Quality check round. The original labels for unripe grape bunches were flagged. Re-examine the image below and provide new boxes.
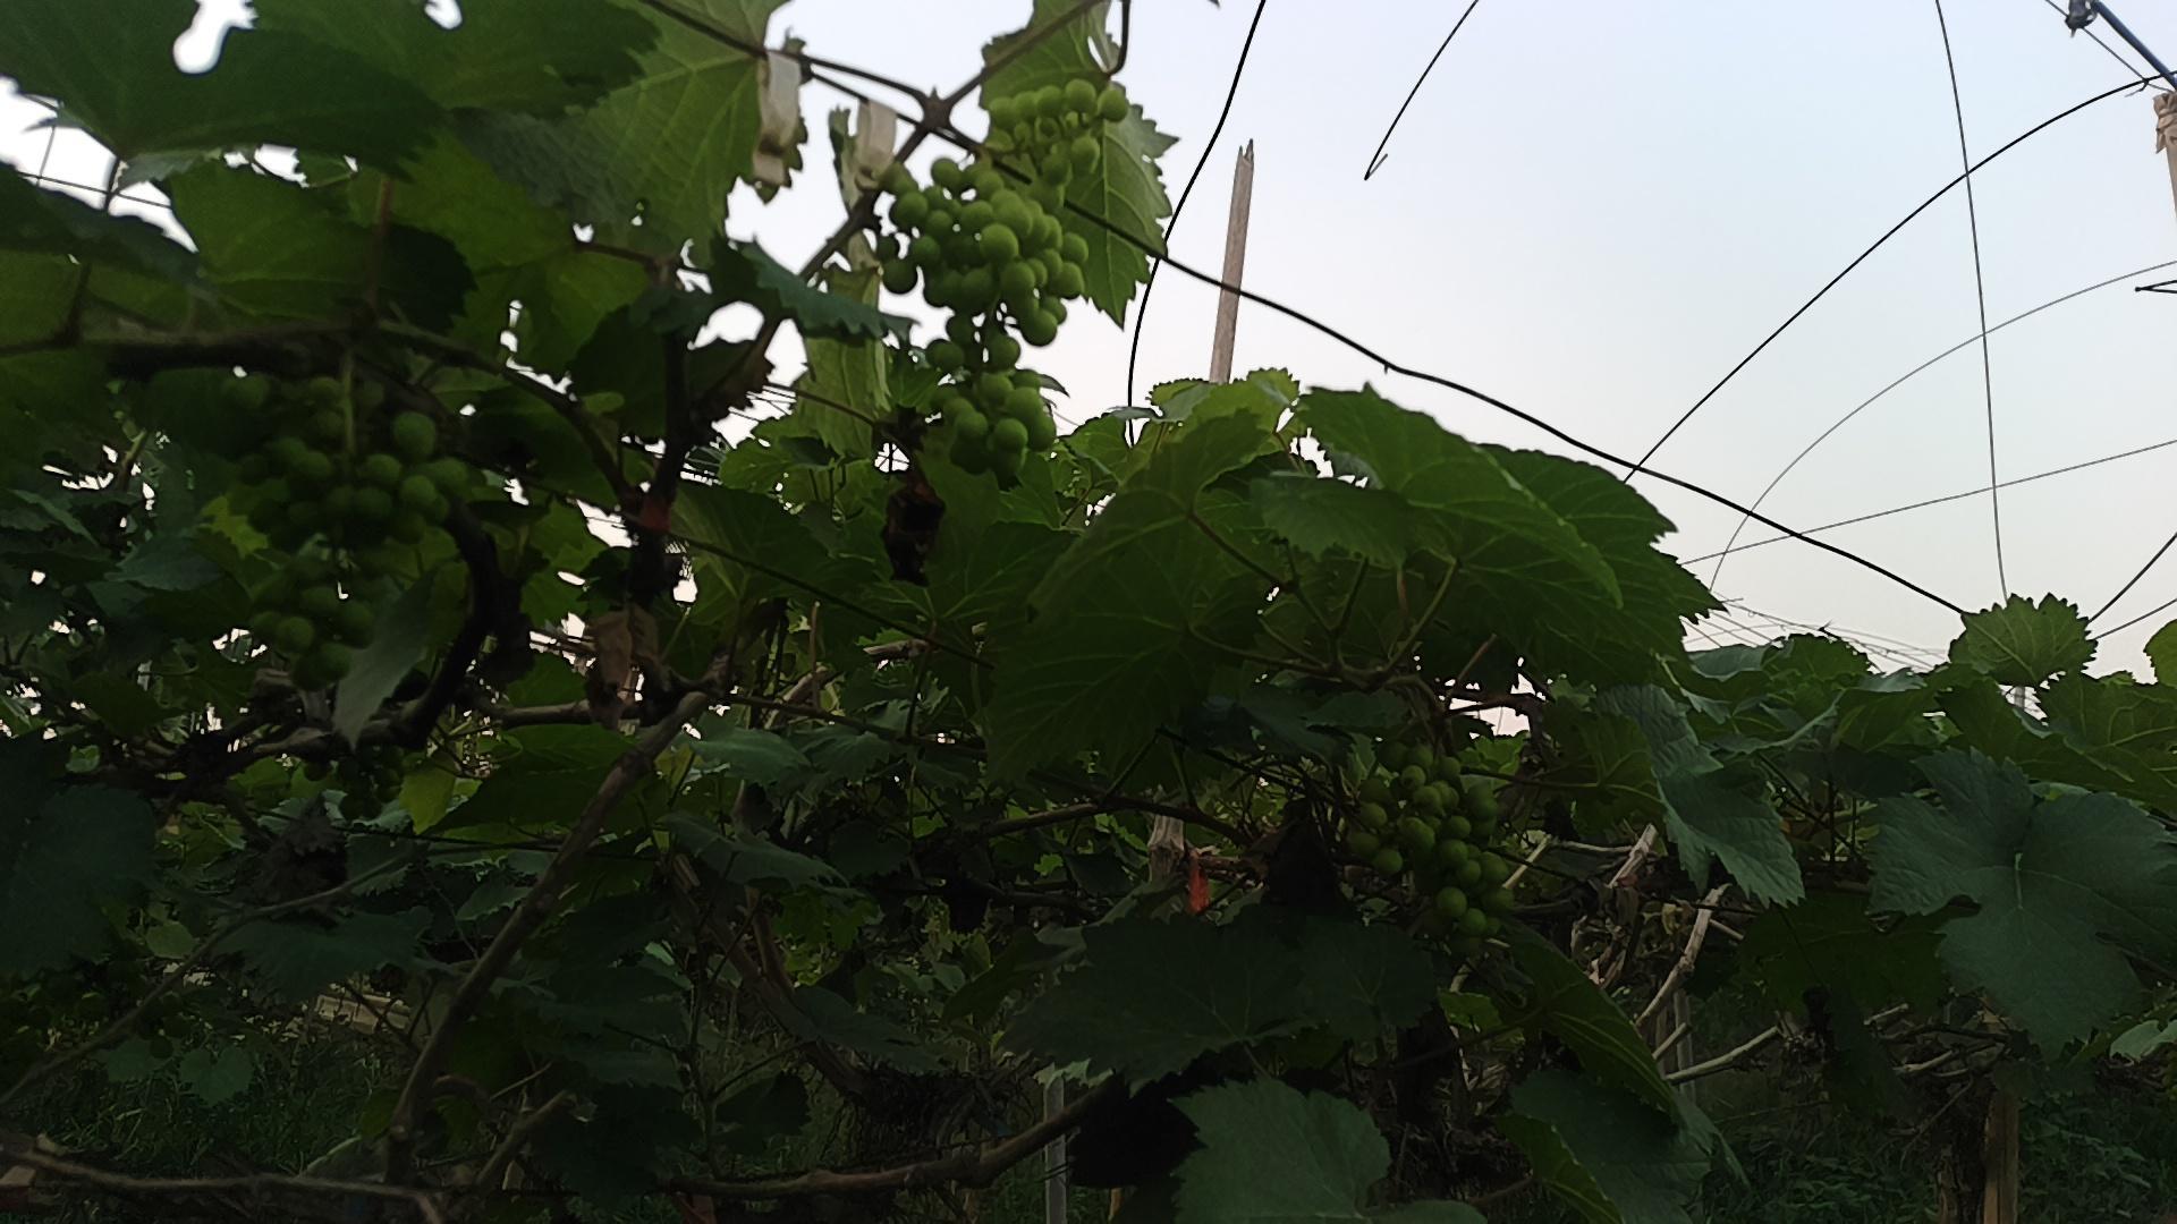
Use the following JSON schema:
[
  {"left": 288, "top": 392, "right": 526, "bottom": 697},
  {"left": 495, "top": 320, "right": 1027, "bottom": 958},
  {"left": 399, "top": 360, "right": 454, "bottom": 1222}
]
[
  {"left": 290, "top": 729, "right": 420, "bottom": 818},
  {"left": 1347, "top": 743, "right": 1510, "bottom": 952},
  {"left": 884, "top": 79, "right": 1128, "bottom": 485},
  {"left": 221, "top": 377, "right": 481, "bottom": 682}
]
